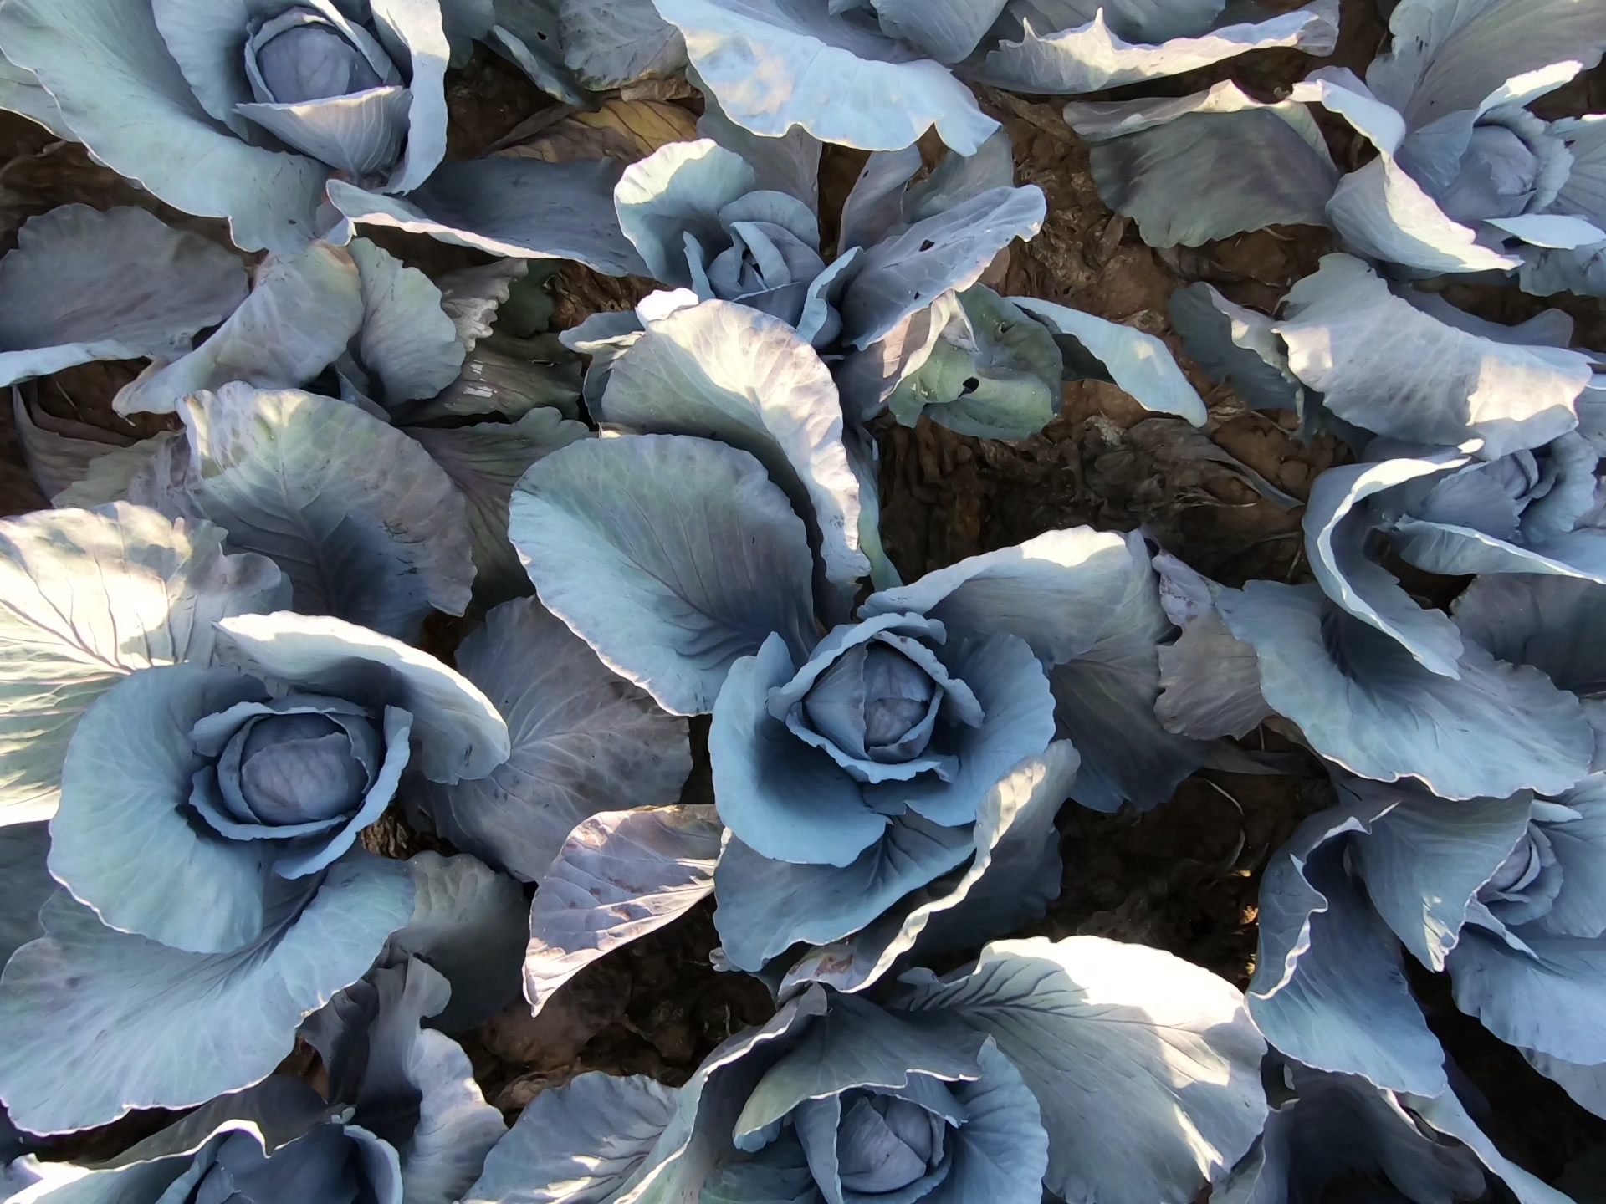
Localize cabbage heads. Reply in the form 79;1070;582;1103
822;645;932;757
807;1046;948;1195
1415;125;1537;224
703;243;812;349
246;8;392;151
1415;430;1541;531
193;1128;334;1202
220;702;375;824
1396;790;1538;903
